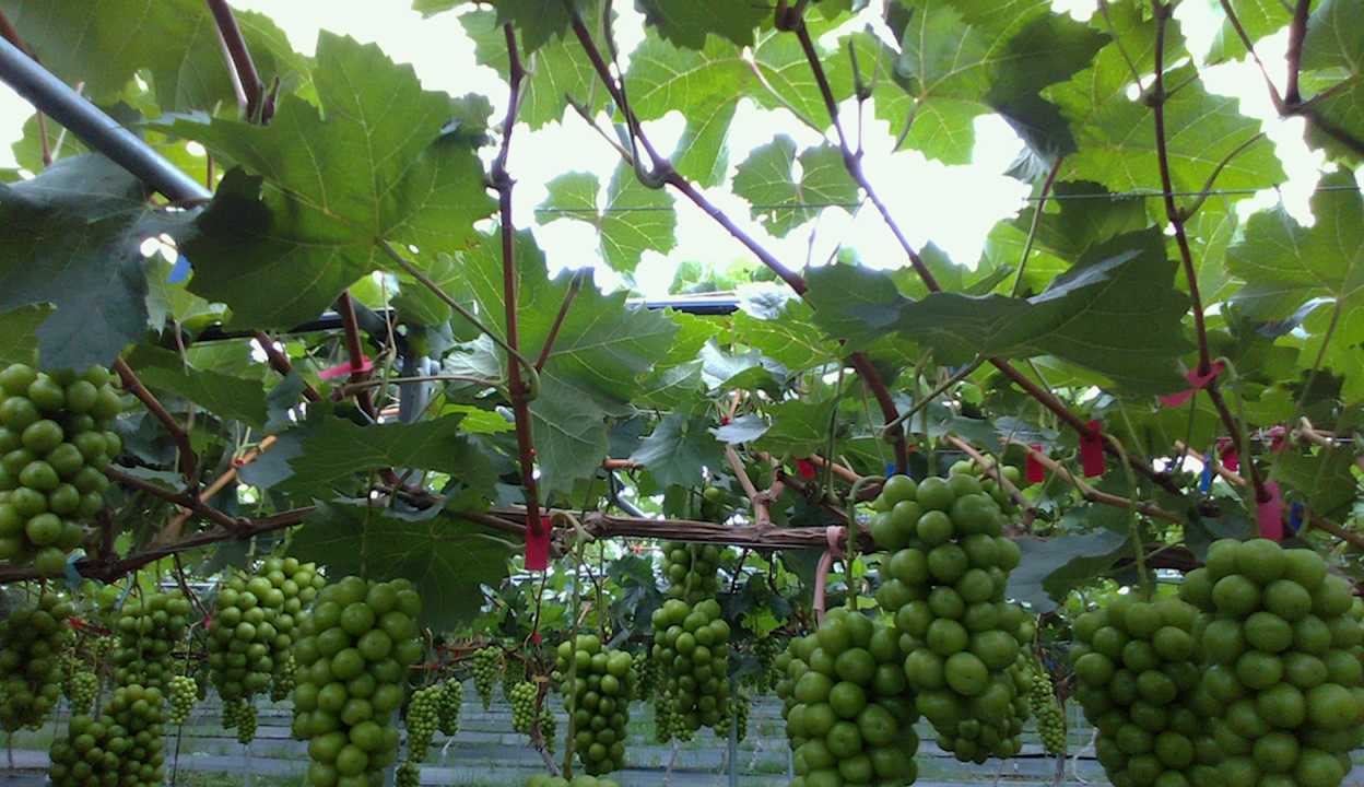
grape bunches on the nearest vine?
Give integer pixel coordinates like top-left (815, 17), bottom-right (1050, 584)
top-left (293, 577), bottom-right (423, 786)
top-left (0, 363), bottom-right (125, 576)
top-left (525, 774), bottom-right (619, 786)
top-left (788, 607), bottom-right (919, 786)
top-left (1179, 538), bottom-right (1363, 786)
top-left (1070, 590), bottom-right (1227, 786)
top-left (871, 474), bottom-right (1034, 729)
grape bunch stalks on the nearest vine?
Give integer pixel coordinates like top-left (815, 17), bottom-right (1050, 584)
top-left (844, 475), bottom-right (885, 611)
top-left (1213, 355), bottom-right (1261, 539)
top-left (360, 469), bottom-right (375, 583)
top-left (1103, 432), bottom-right (1152, 601)
top-left (550, 508), bottom-right (586, 782)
